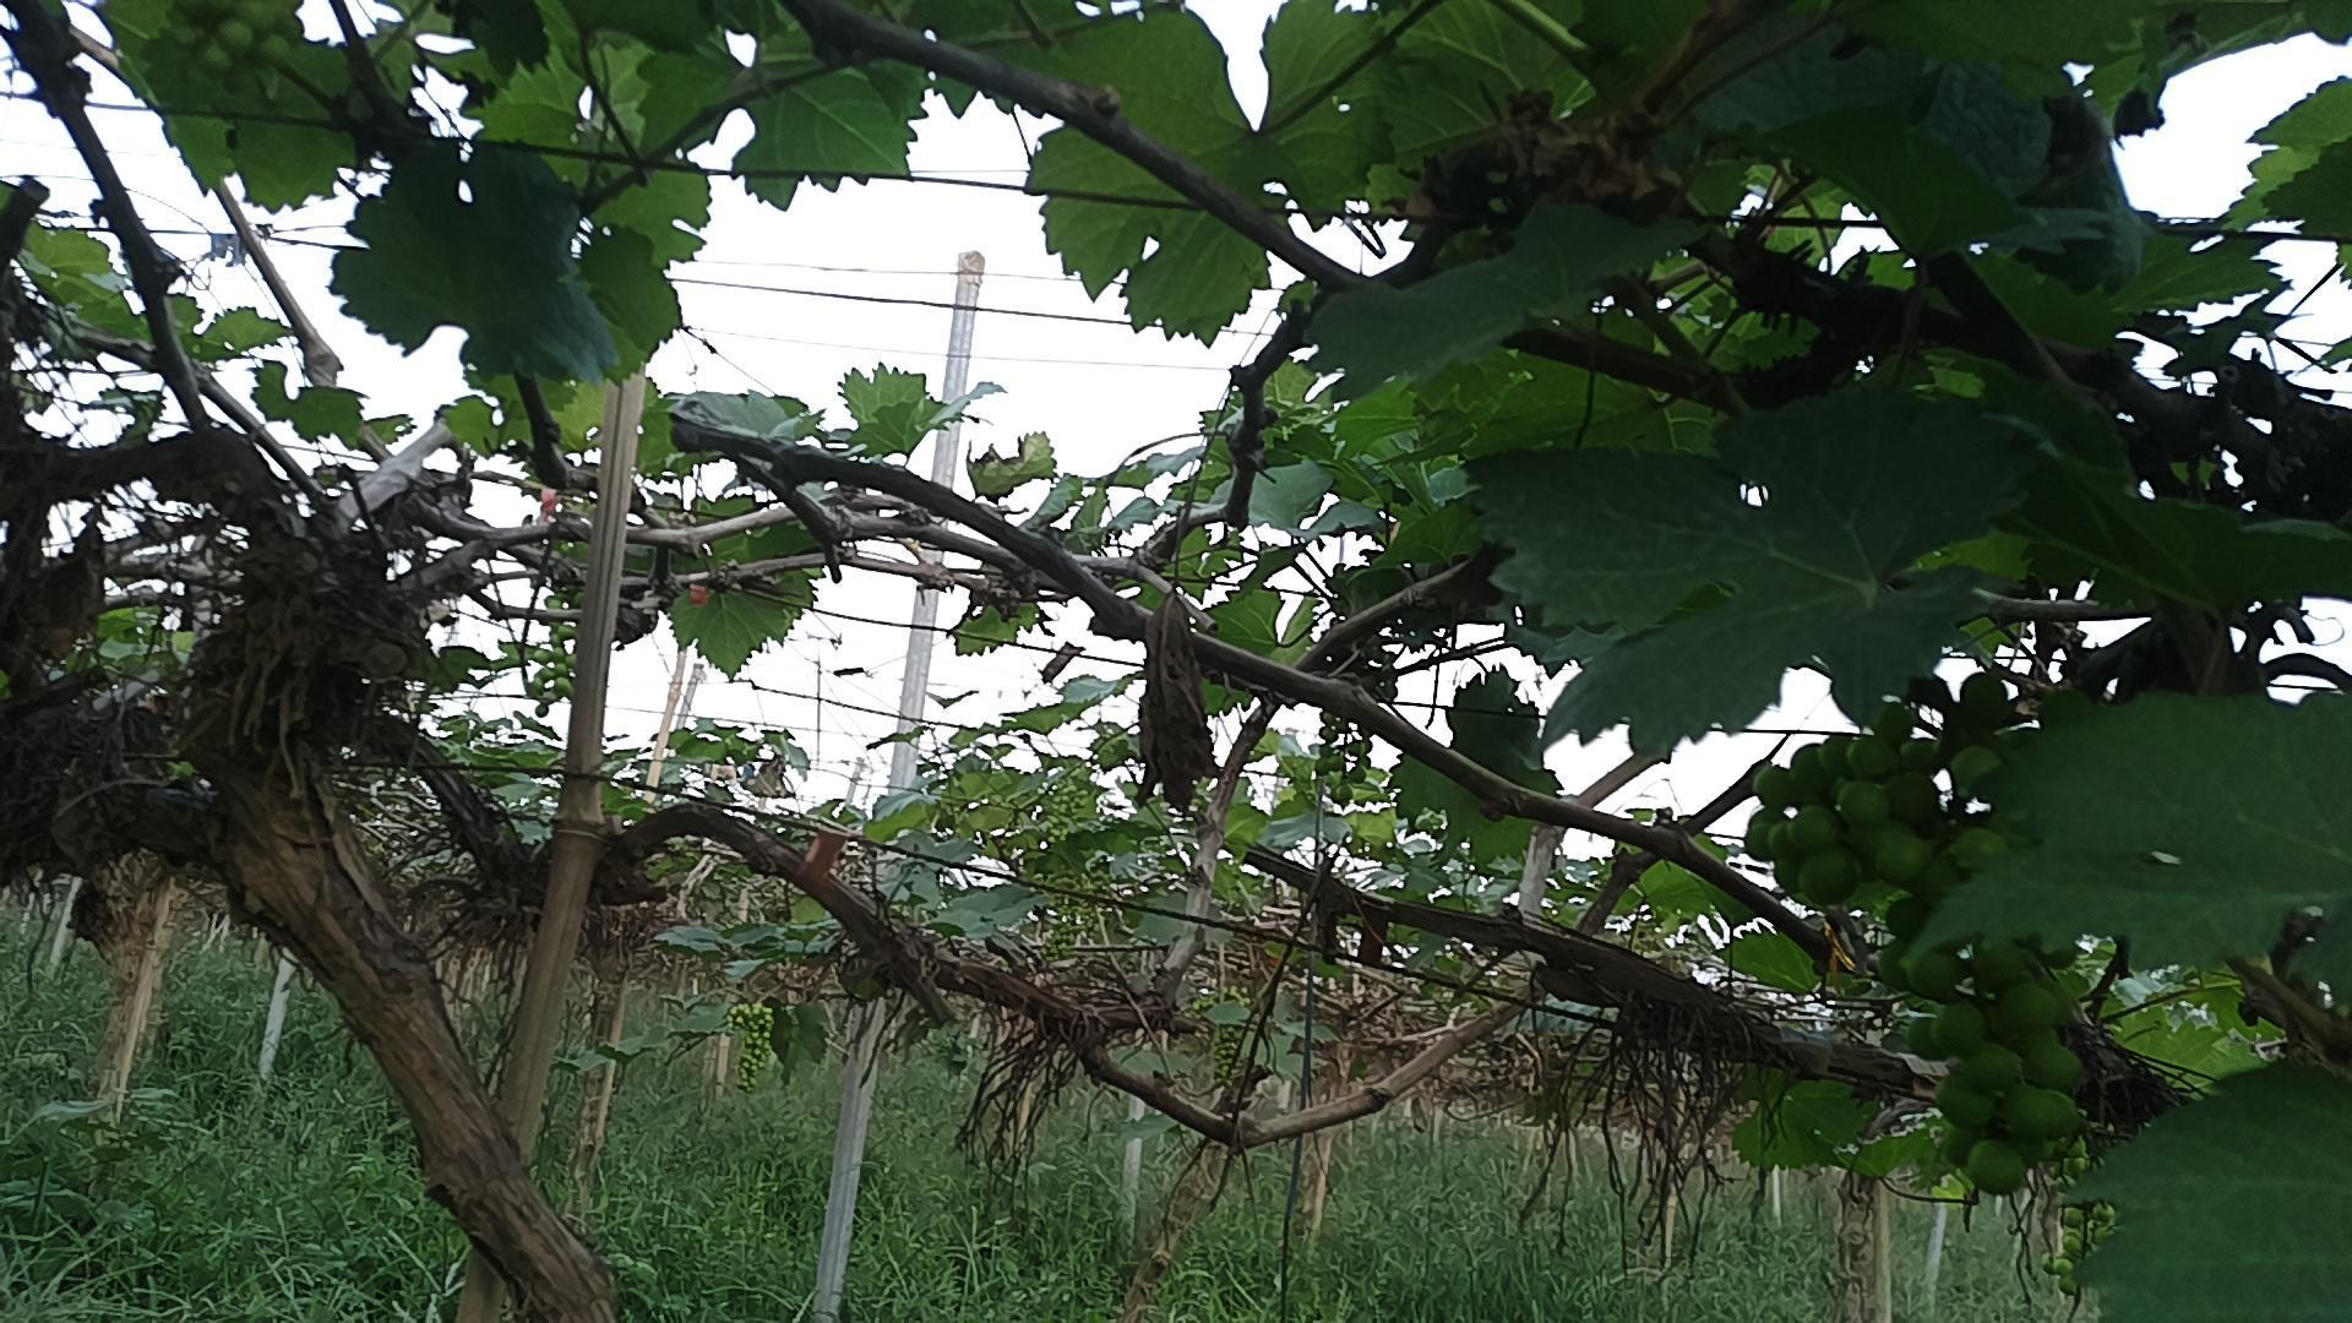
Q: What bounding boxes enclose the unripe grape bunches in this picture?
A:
[725,1001,774,1090]
[1314,709,1373,804]
[1746,703,2081,1196]
[529,582,584,718]
[1212,1024,1246,1087]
